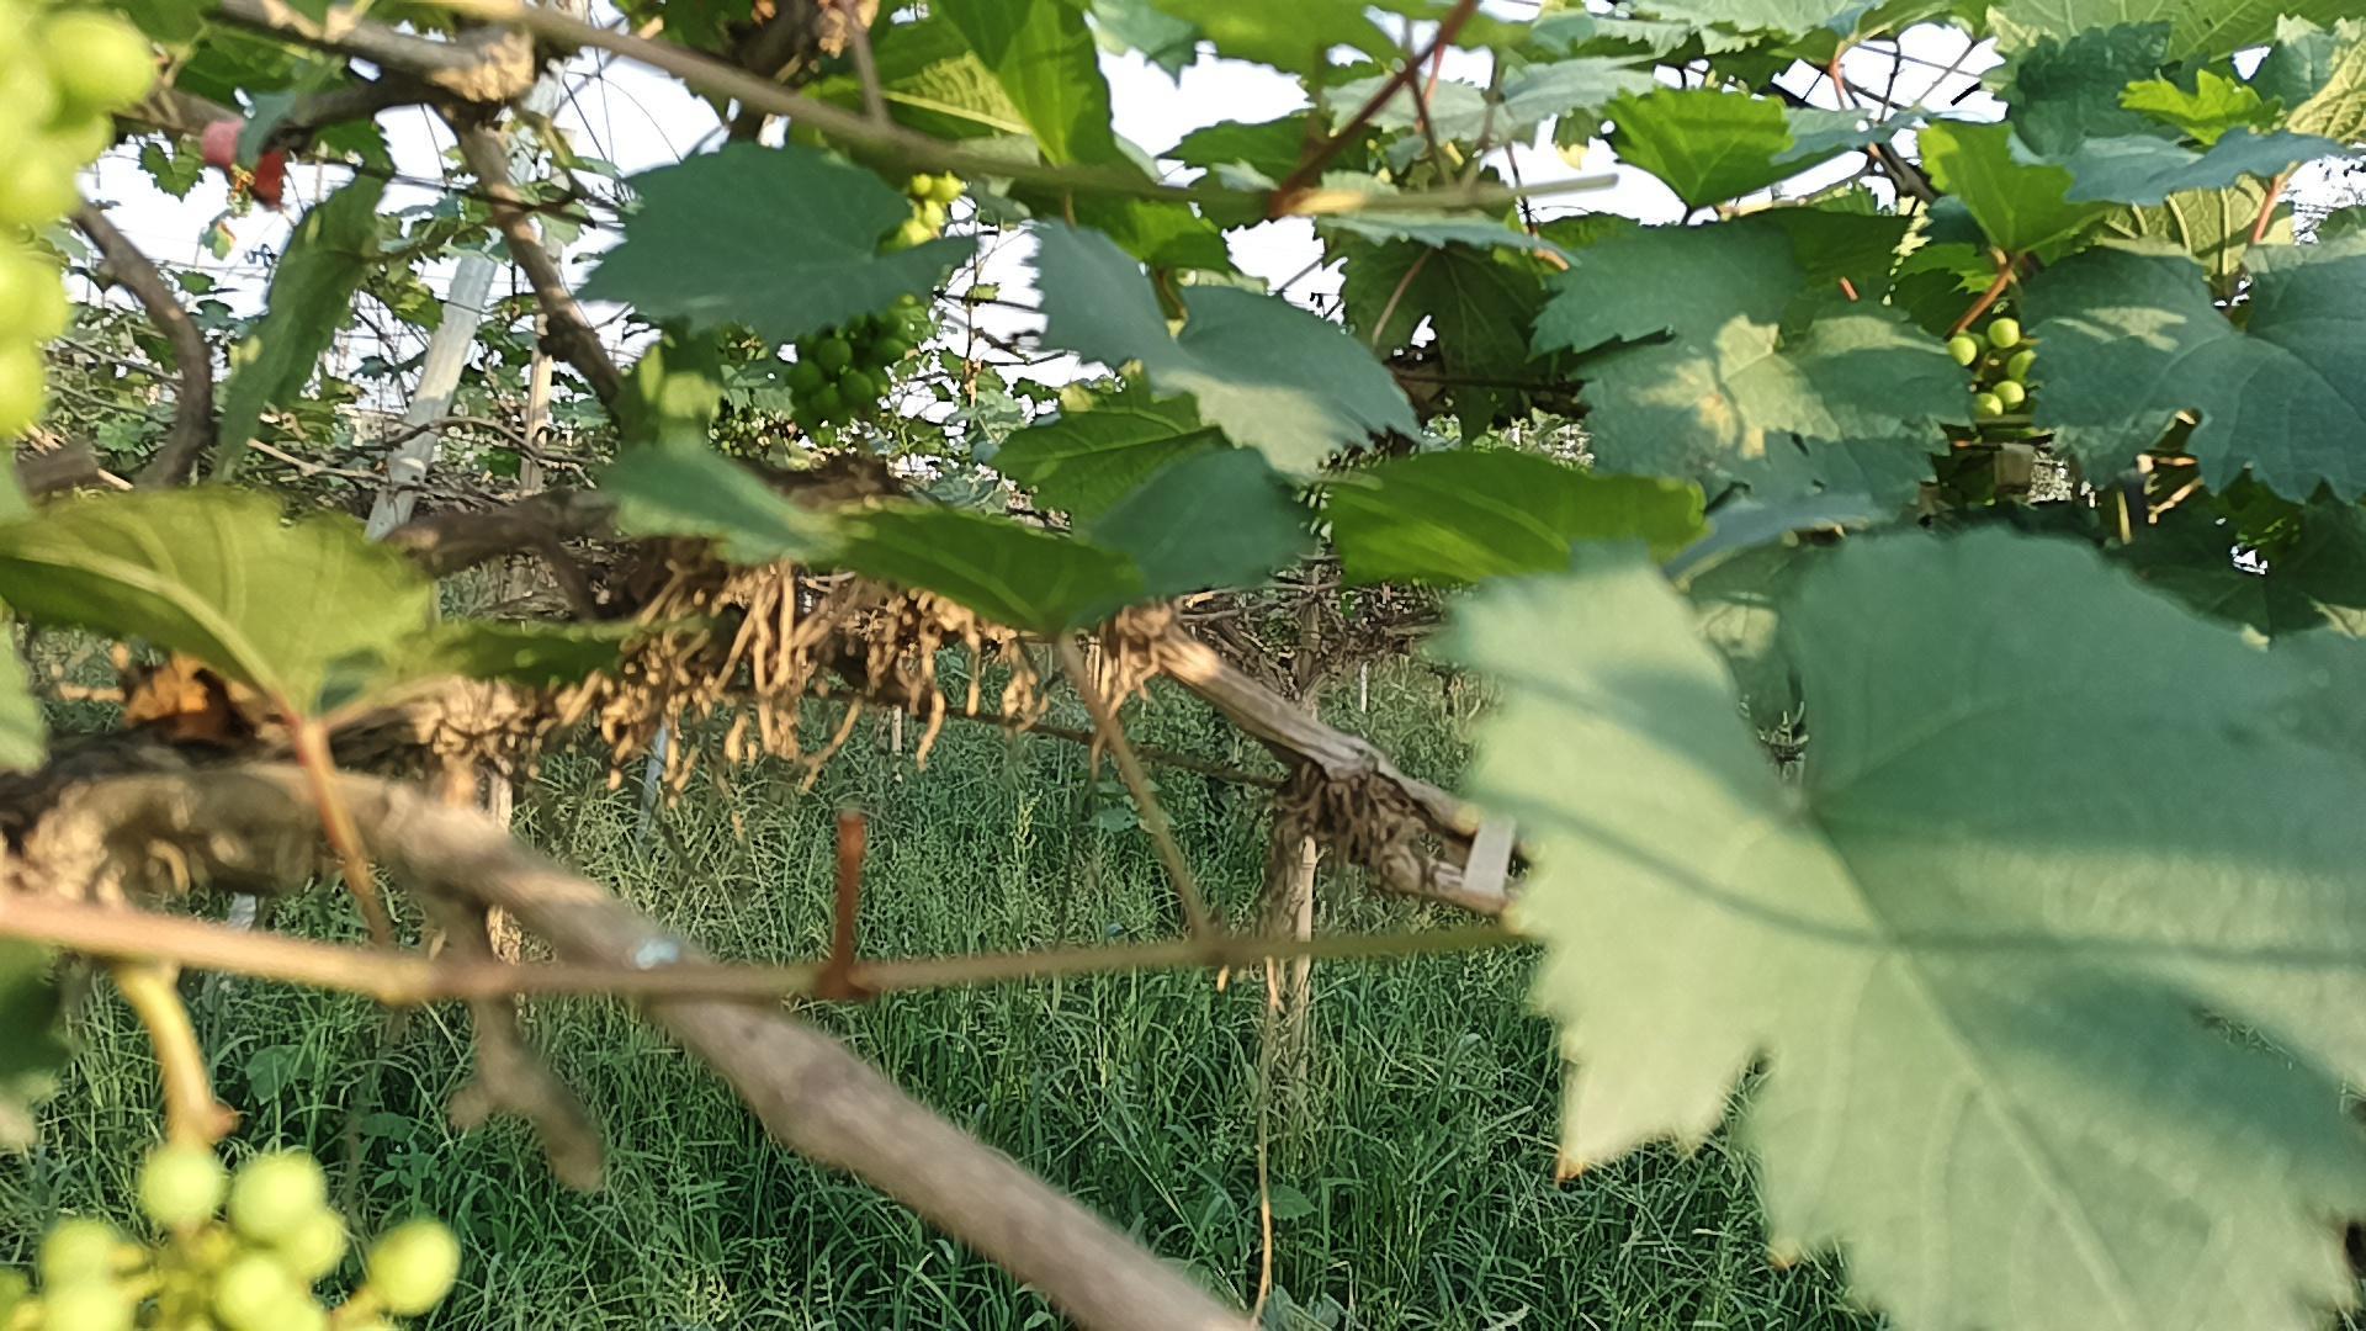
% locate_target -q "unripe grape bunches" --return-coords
[784,174,974,433]
[0,1139,461,1330]
[1948,317,2035,415]
[0,0,158,446]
